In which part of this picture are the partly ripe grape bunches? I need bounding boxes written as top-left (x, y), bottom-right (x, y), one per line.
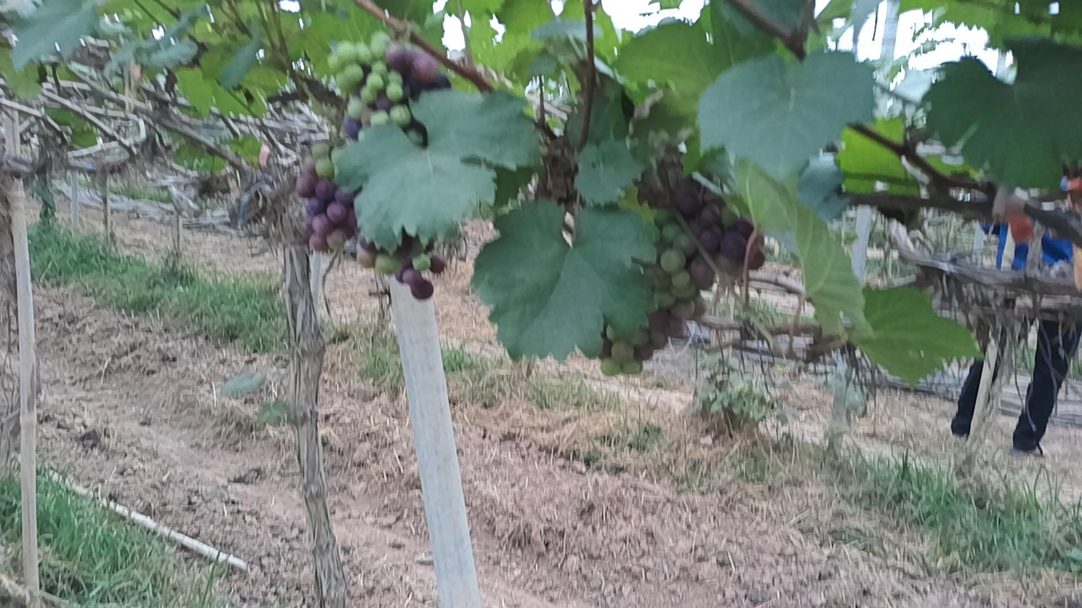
top-left (600, 164), bottom-right (765, 376)
top-left (293, 30), bottom-right (453, 303)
